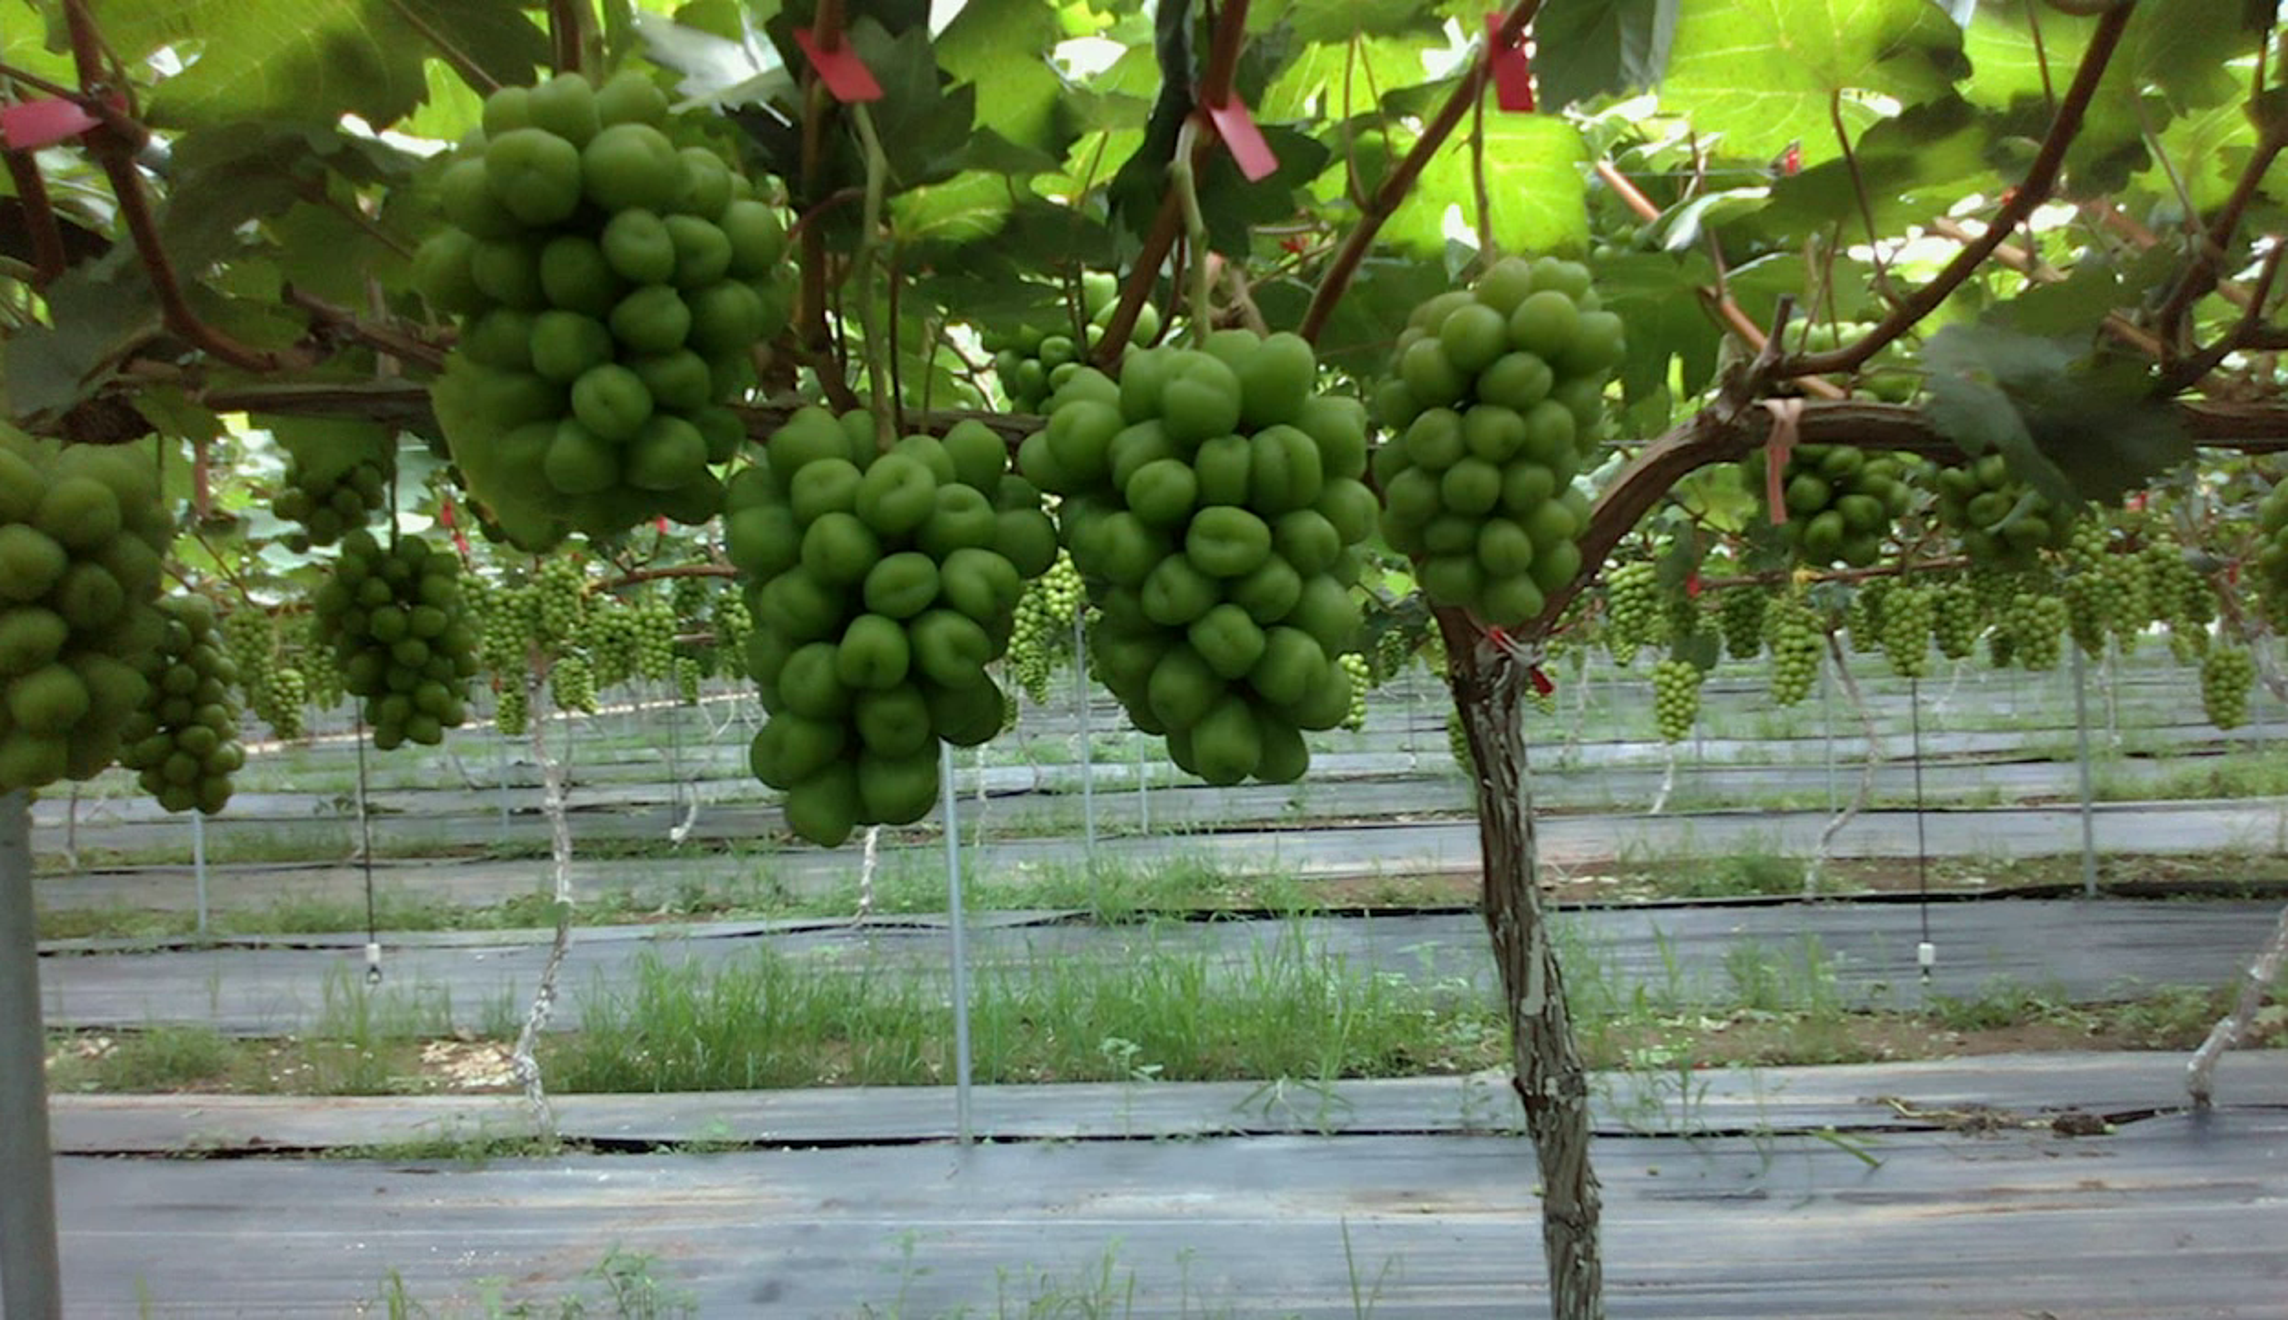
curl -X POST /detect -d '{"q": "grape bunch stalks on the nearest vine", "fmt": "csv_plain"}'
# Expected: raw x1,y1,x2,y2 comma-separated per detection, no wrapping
1470,51,1496,271
849,103,896,456
1171,112,1210,348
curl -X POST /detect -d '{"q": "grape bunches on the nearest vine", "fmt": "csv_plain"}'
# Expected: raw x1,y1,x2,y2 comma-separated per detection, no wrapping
409,68,794,535
1369,255,1630,627
722,405,1056,847
1017,328,1382,790
0,418,178,790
